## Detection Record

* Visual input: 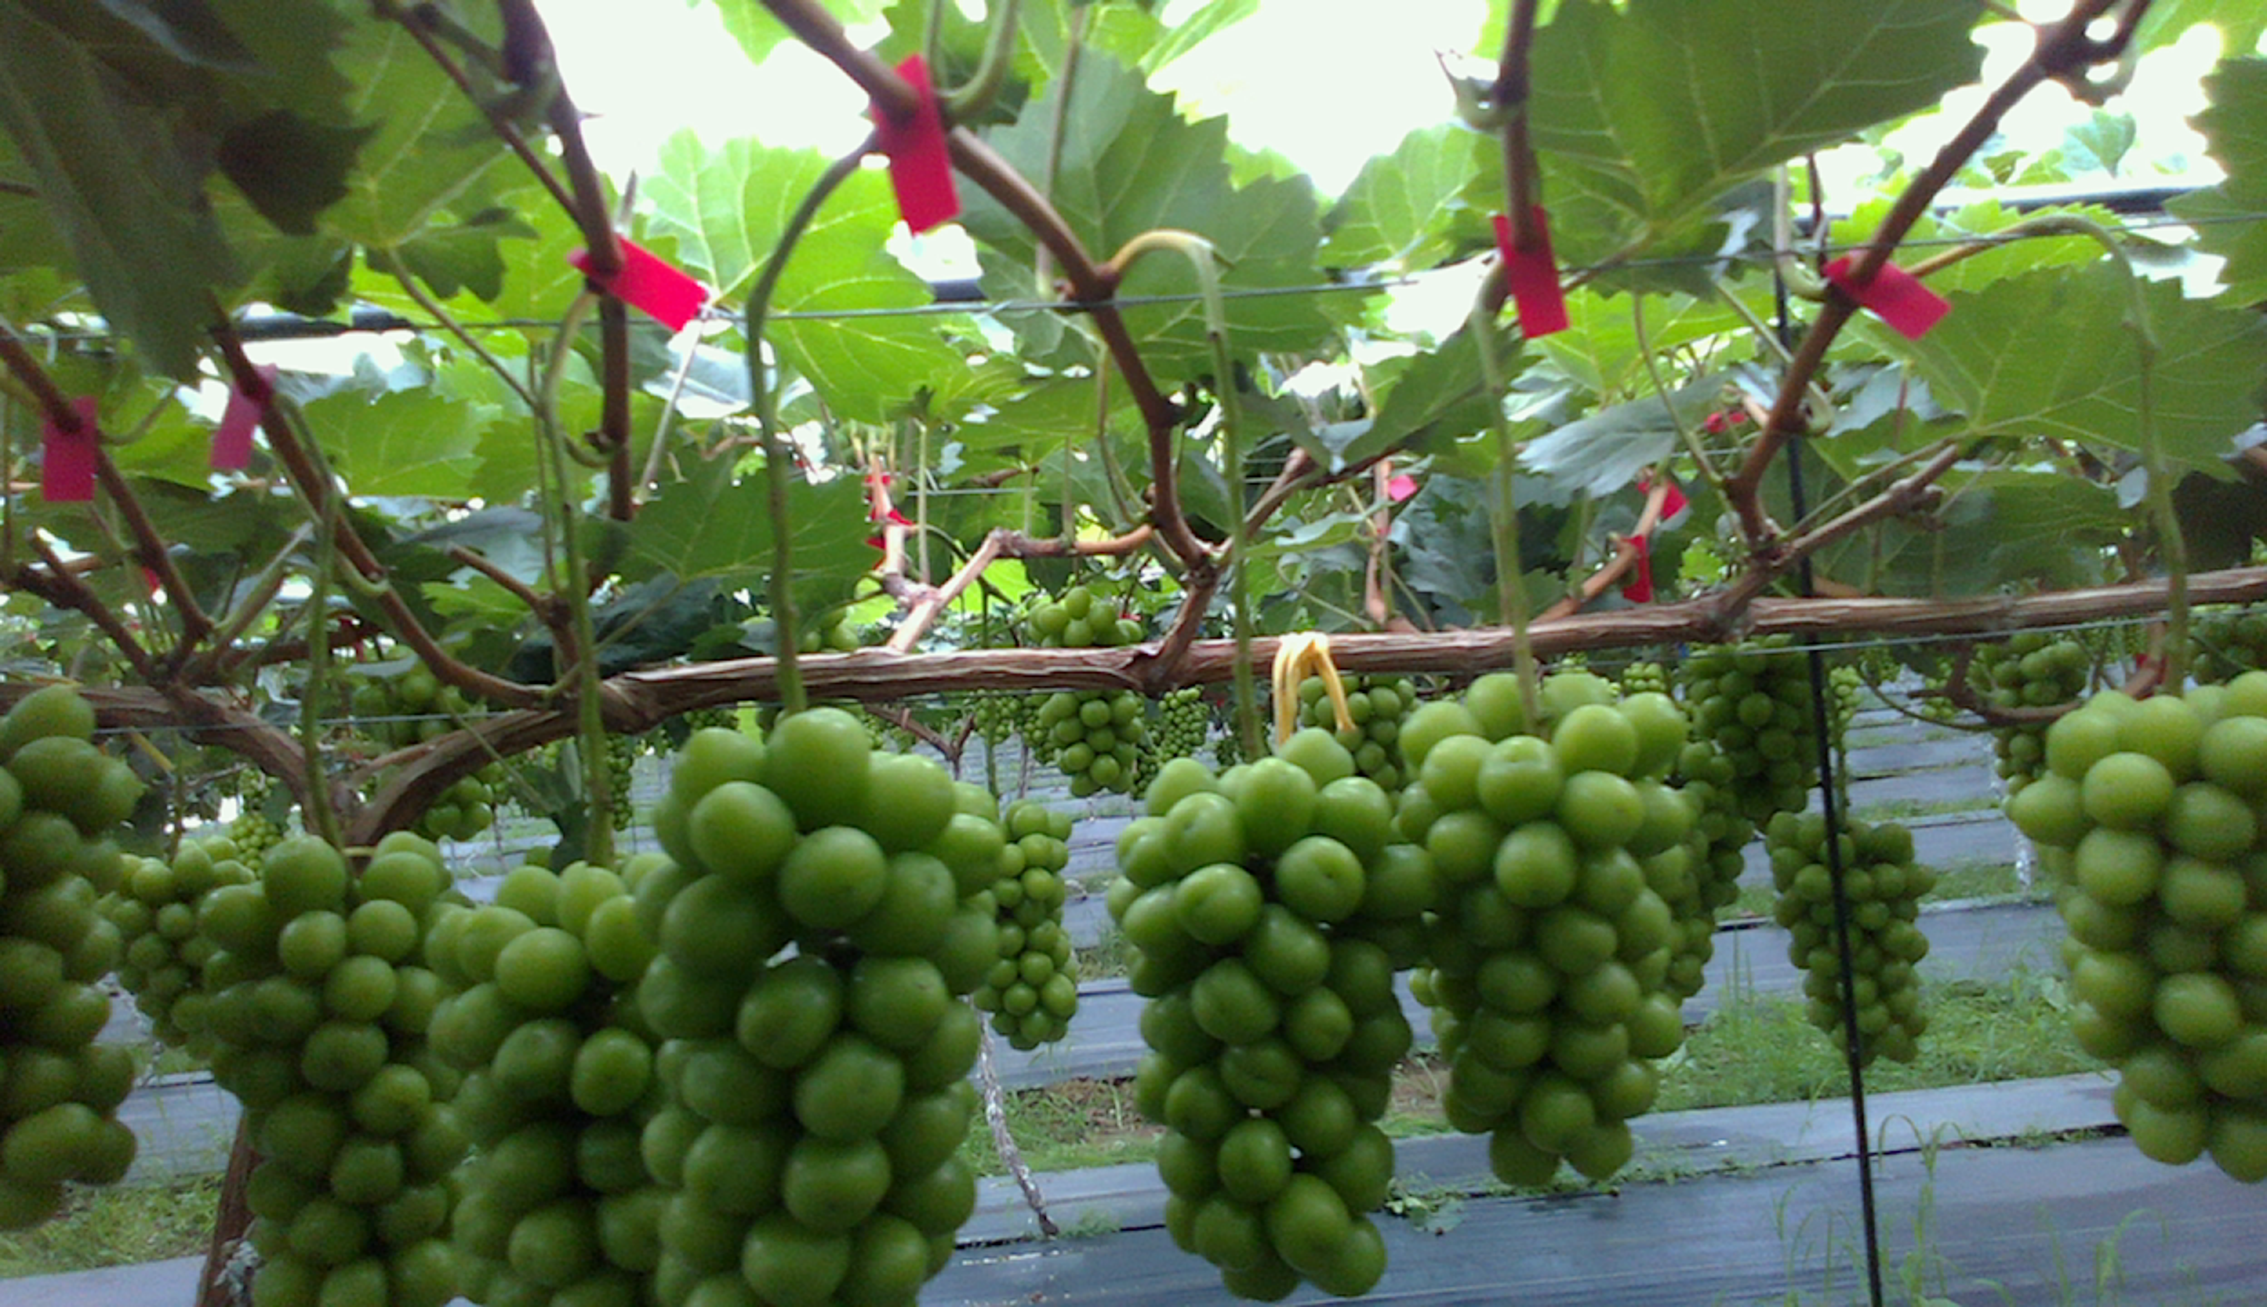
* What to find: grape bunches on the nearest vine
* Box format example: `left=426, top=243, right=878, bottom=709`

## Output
left=630, top=712, right=1006, bottom=1303
left=202, top=833, right=467, bottom=1305
left=2011, top=668, right=2265, bottom=1182
left=1108, top=724, right=1433, bottom=1302
left=420, top=855, right=672, bottom=1305
left=2, top=681, right=136, bottom=1229
left=1393, top=675, right=1689, bottom=1193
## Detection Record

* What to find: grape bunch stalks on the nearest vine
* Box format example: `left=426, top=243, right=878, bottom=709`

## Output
left=745, top=133, right=886, bottom=712
left=291, top=408, right=340, bottom=848
left=1108, top=231, right=1264, bottom=761
left=1459, top=270, right=1540, bottom=733
left=538, top=296, right=618, bottom=871
left=1900, top=214, right=2191, bottom=699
